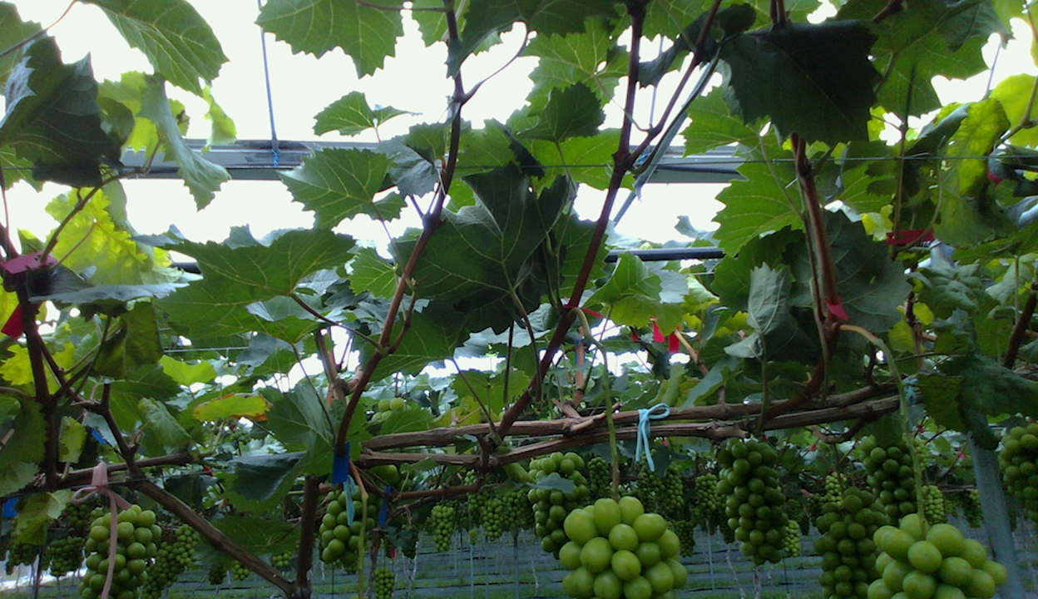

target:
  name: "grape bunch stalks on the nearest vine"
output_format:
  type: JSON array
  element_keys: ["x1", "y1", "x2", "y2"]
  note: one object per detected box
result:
[
  {"x1": 567, "y1": 307, "x2": 619, "y2": 503},
  {"x1": 841, "y1": 324, "x2": 925, "y2": 541}
]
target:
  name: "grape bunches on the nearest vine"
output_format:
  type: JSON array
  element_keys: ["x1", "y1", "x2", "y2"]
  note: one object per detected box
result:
[
  {"x1": 559, "y1": 496, "x2": 688, "y2": 598},
  {"x1": 867, "y1": 513, "x2": 1008, "y2": 598}
]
